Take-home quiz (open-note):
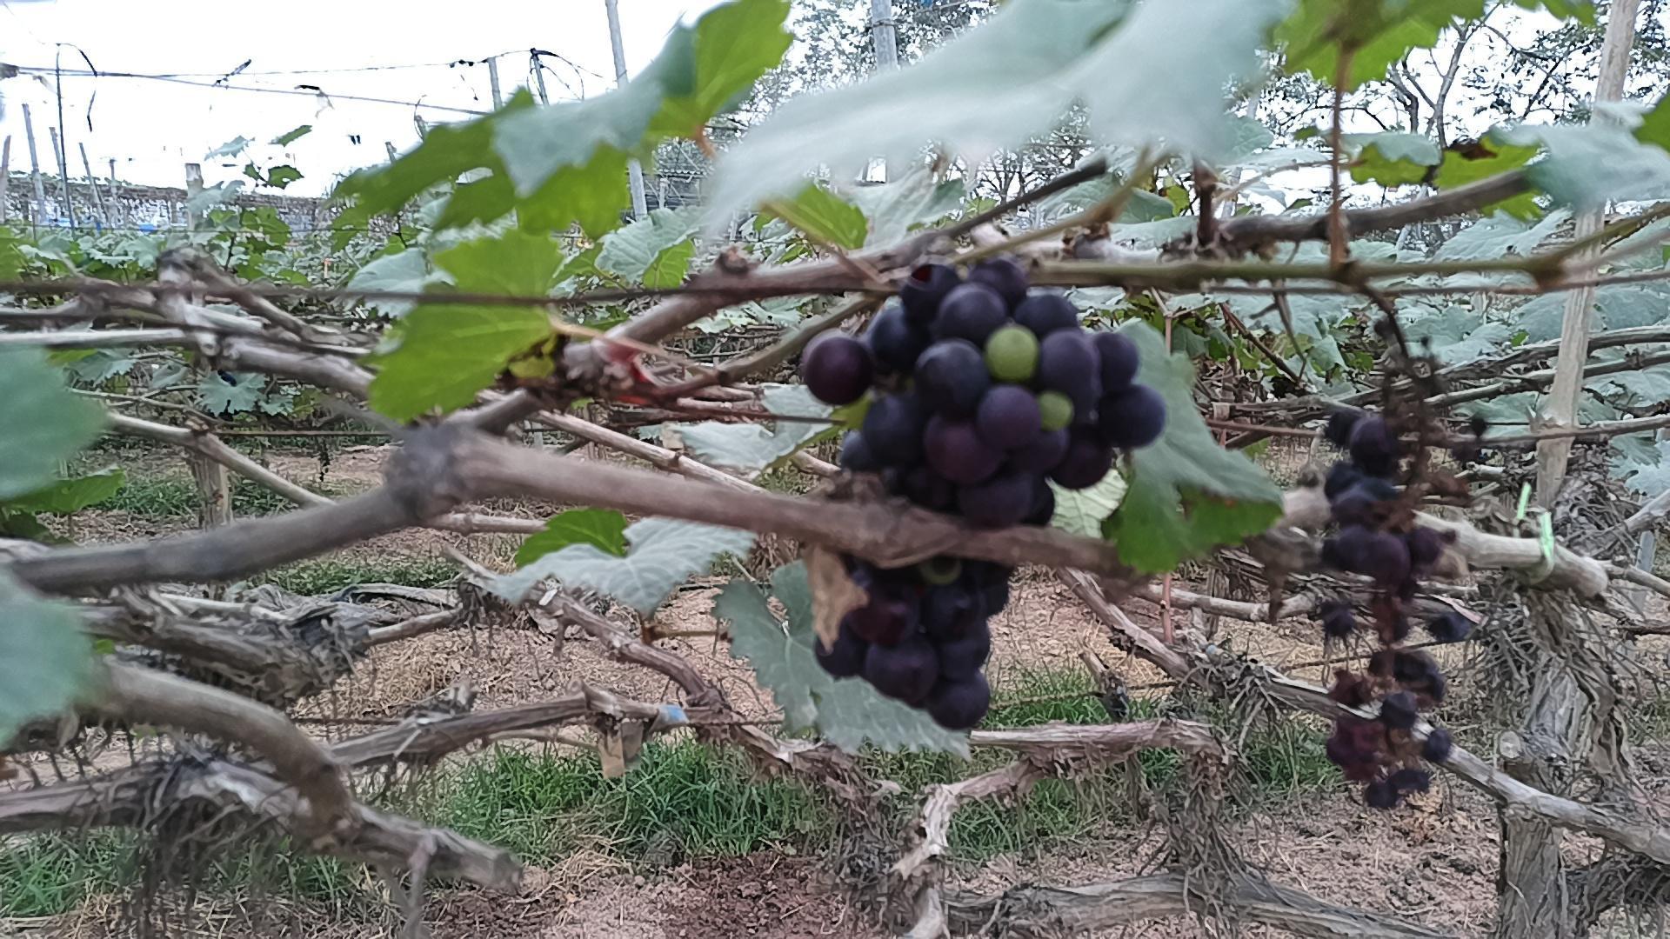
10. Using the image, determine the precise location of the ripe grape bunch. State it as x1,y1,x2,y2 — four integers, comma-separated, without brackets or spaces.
1319,411,1475,809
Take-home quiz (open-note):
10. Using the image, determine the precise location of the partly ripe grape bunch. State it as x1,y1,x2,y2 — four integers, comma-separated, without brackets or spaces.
800,258,1165,729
